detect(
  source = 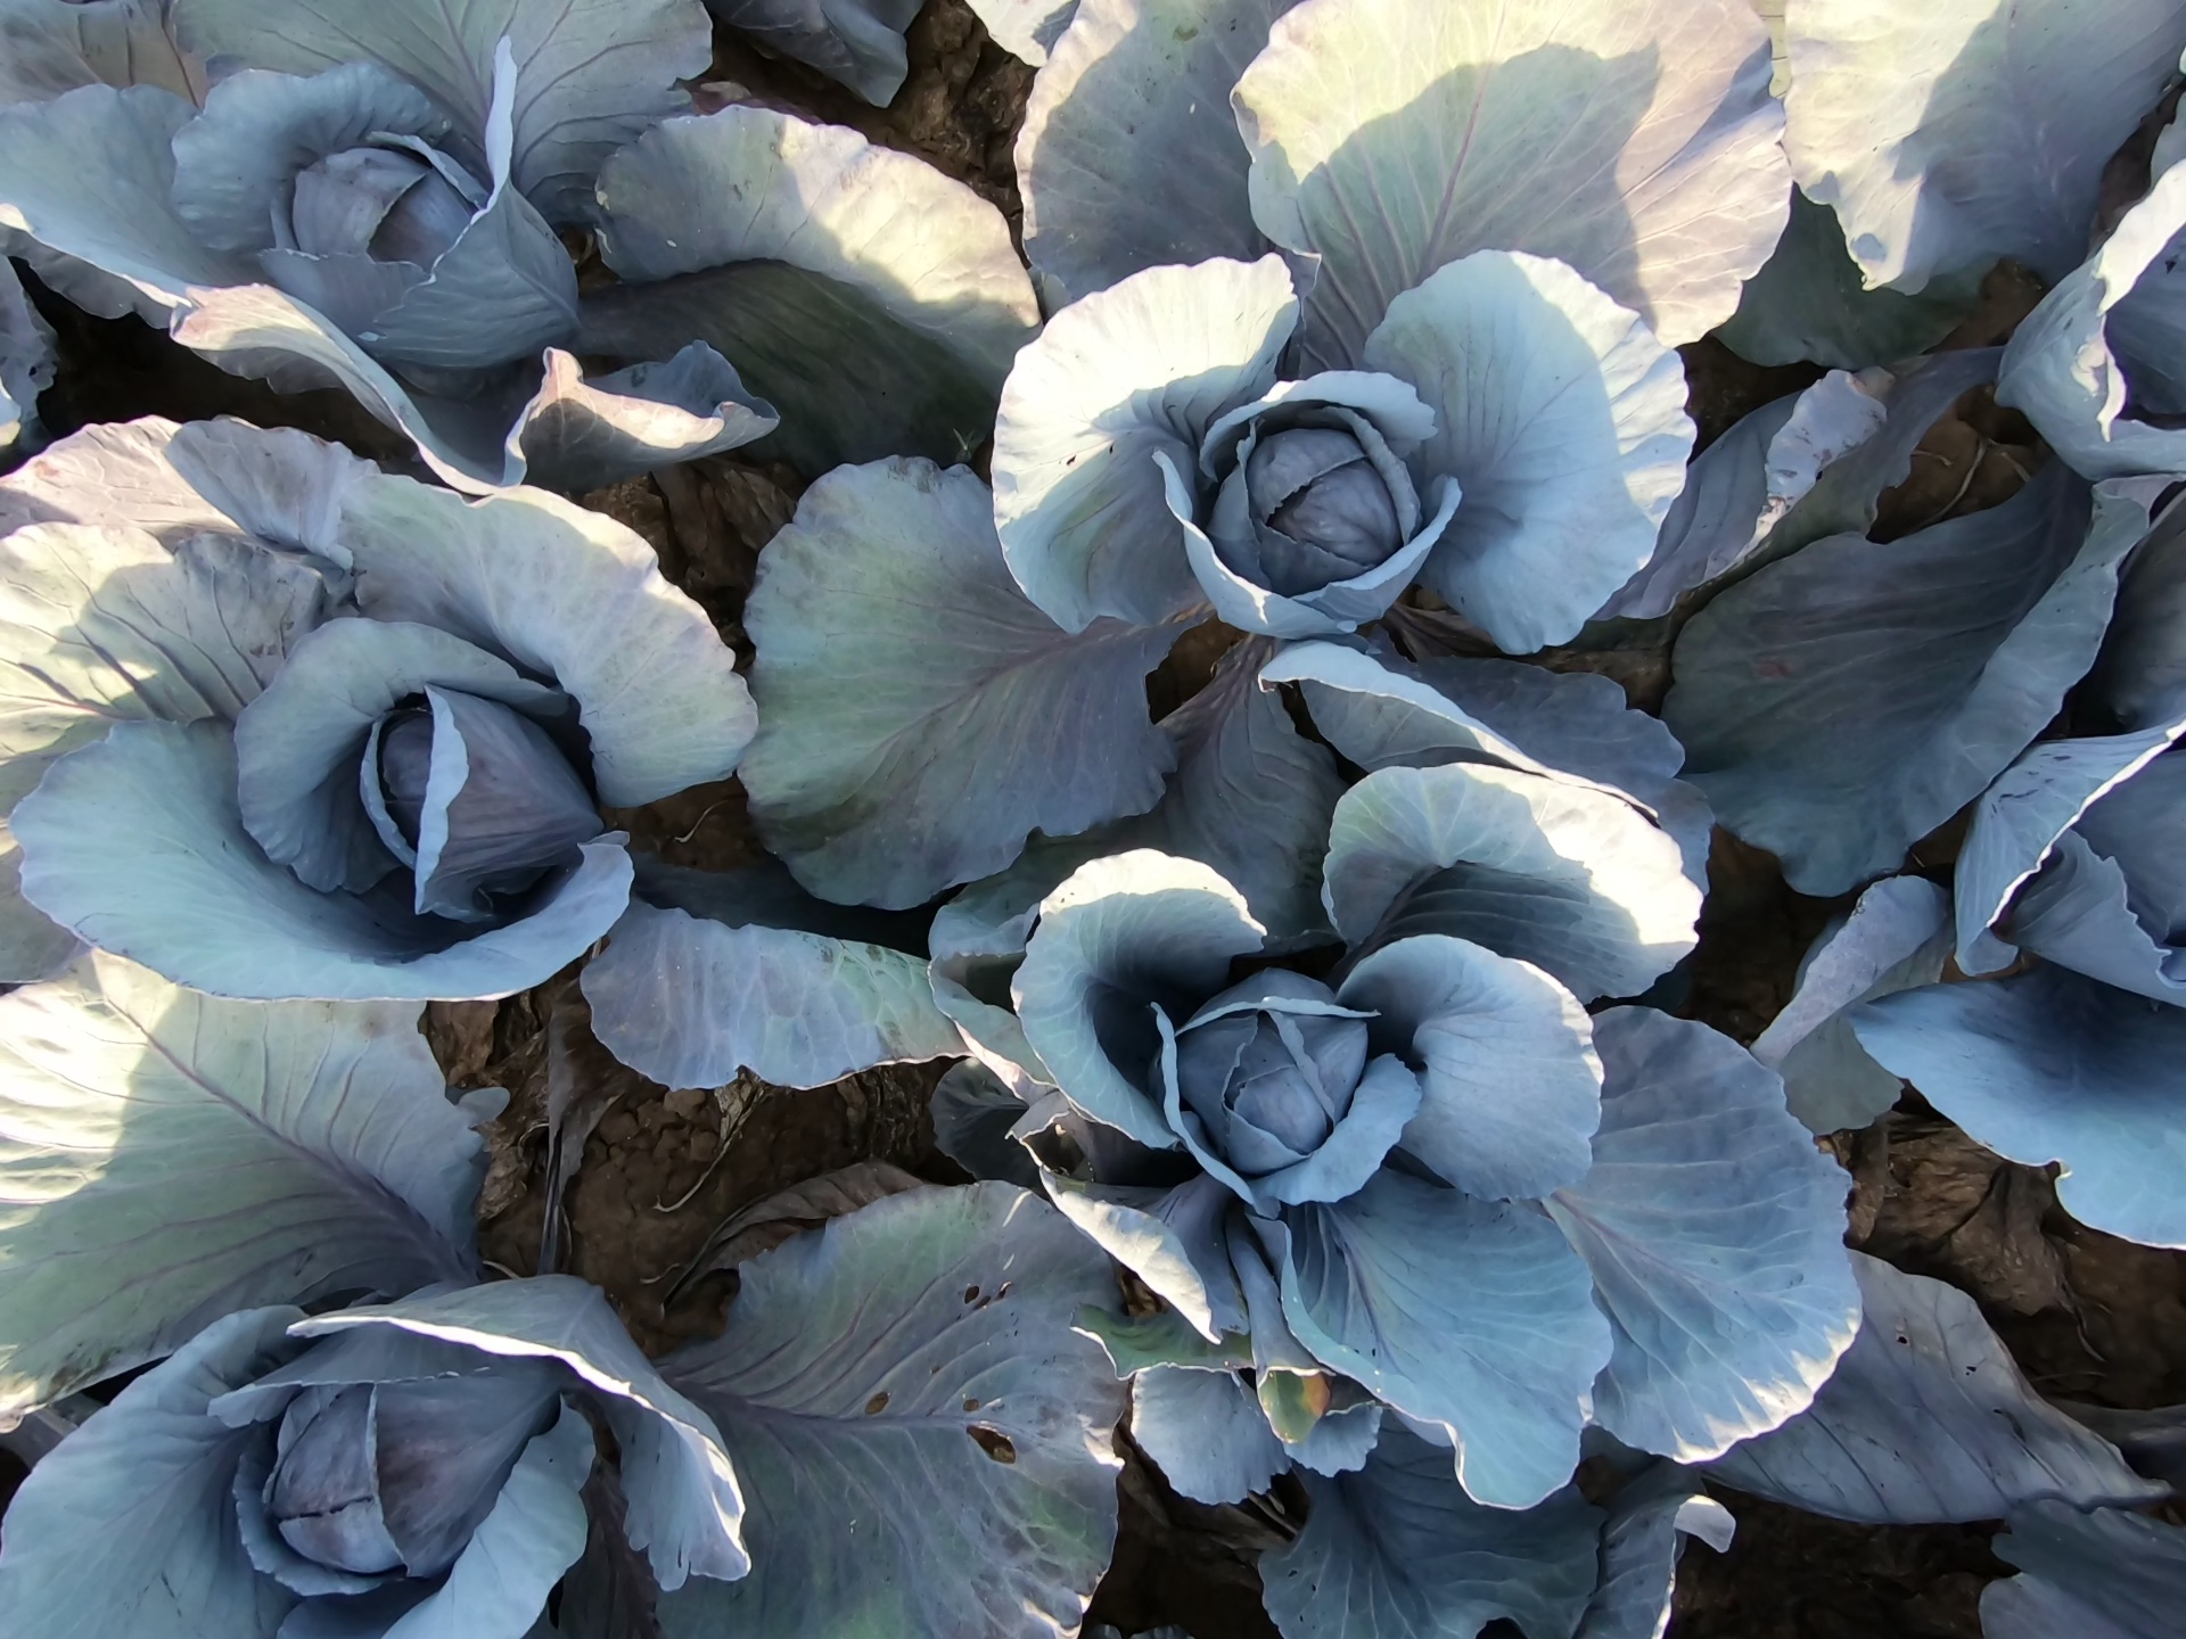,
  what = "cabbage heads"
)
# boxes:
[289,140,534,361]
[2063,750,2179,944]
[1222,430,1415,596]
[1194,1014,1353,1171]
[368,702,549,874]
[269,1340,525,1579]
